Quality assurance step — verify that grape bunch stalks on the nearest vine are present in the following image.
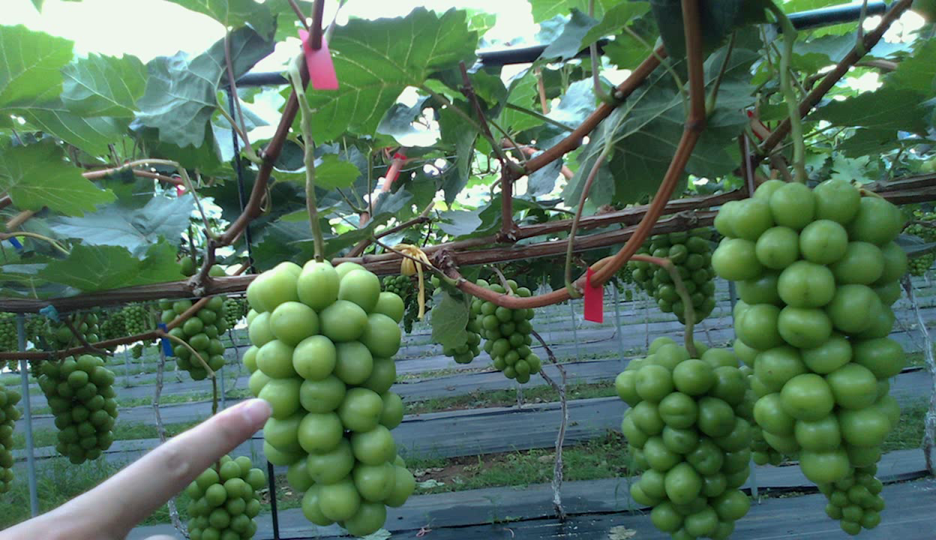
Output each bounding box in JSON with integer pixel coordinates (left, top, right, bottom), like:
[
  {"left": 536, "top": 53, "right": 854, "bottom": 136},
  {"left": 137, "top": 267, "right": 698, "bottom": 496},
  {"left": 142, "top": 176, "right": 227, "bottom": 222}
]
[
  {"left": 772, "top": 9, "right": 805, "bottom": 182},
  {"left": 590, "top": 254, "right": 700, "bottom": 358},
  {"left": 289, "top": 52, "right": 324, "bottom": 262}
]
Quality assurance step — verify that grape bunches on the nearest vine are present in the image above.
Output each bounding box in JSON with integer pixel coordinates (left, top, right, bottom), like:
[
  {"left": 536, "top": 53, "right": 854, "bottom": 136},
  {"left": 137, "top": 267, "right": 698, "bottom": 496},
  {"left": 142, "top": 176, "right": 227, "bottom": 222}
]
[
  {"left": 613, "top": 334, "right": 756, "bottom": 539},
  {"left": 243, "top": 259, "right": 417, "bottom": 535},
  {"left": 709, "top": 178, "right": 907, "bottom": 484}
]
